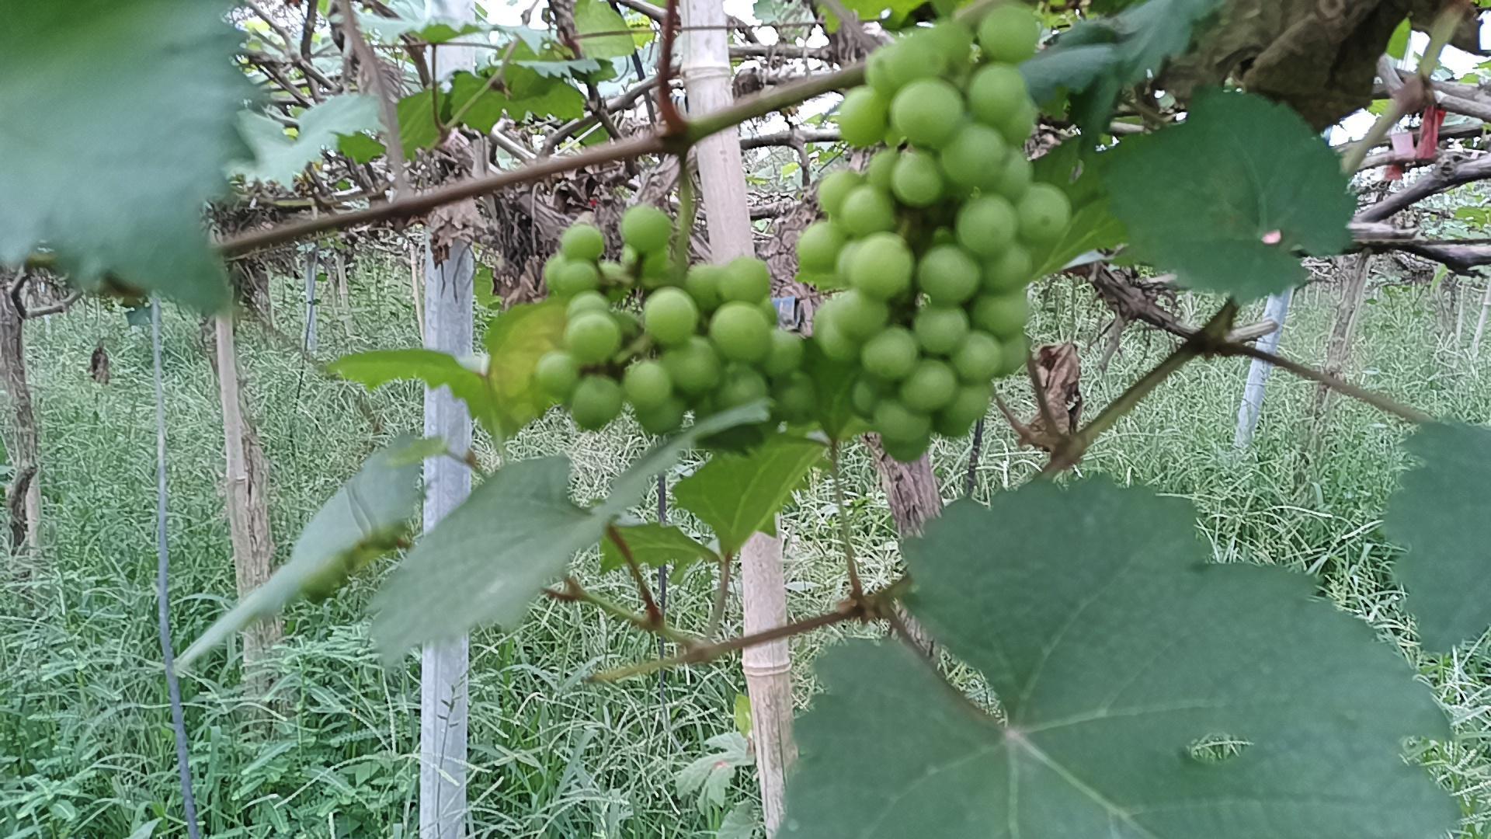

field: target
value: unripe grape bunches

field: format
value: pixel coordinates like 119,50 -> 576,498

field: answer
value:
531,206 -> 812,433
798,0 -> 1071,460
